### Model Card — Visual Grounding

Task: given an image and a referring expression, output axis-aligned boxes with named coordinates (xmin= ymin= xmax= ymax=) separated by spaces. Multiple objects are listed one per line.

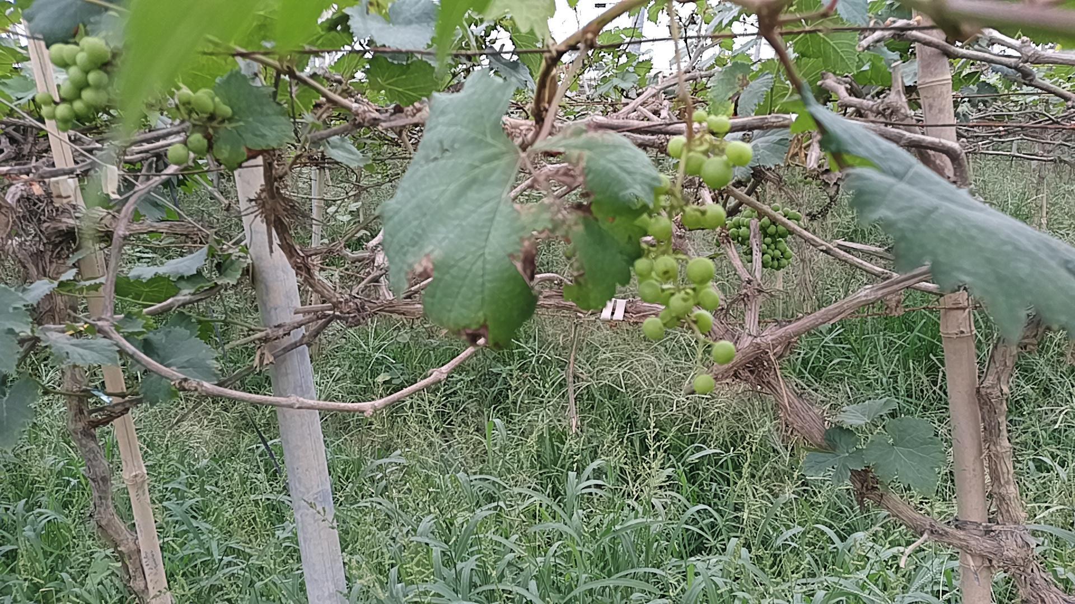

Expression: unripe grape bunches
xmin=689 ymin=372 xmax=714 ymax=394
xmin=35 ymin=37 xmax=112 ymax=130
xmin=169 ymin=85 xmax=233 ymax=164
xmin=632 ymin=112 xmax=751 ymax=367
xmin=727 ymin=204 xmax=802 ymax=270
